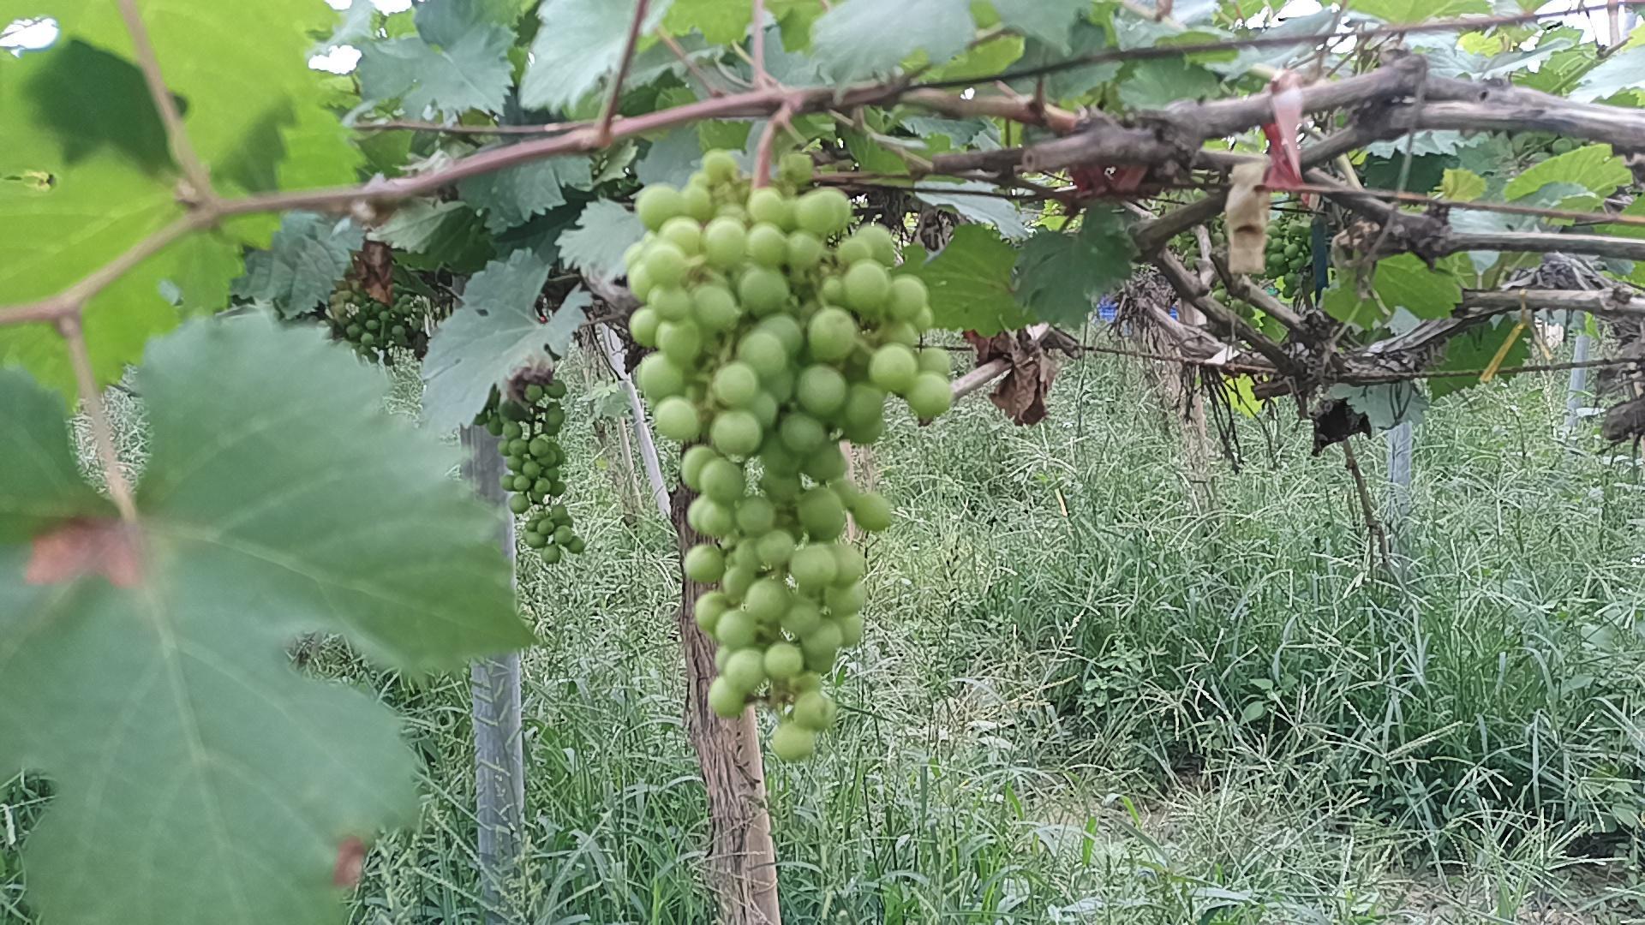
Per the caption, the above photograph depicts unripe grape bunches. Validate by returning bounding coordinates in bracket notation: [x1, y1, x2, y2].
[326, 269, 430, 362]
[623, 151, 954, 759]
[1264, 214, 1311, 296]
[476, 366, 584, 563]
